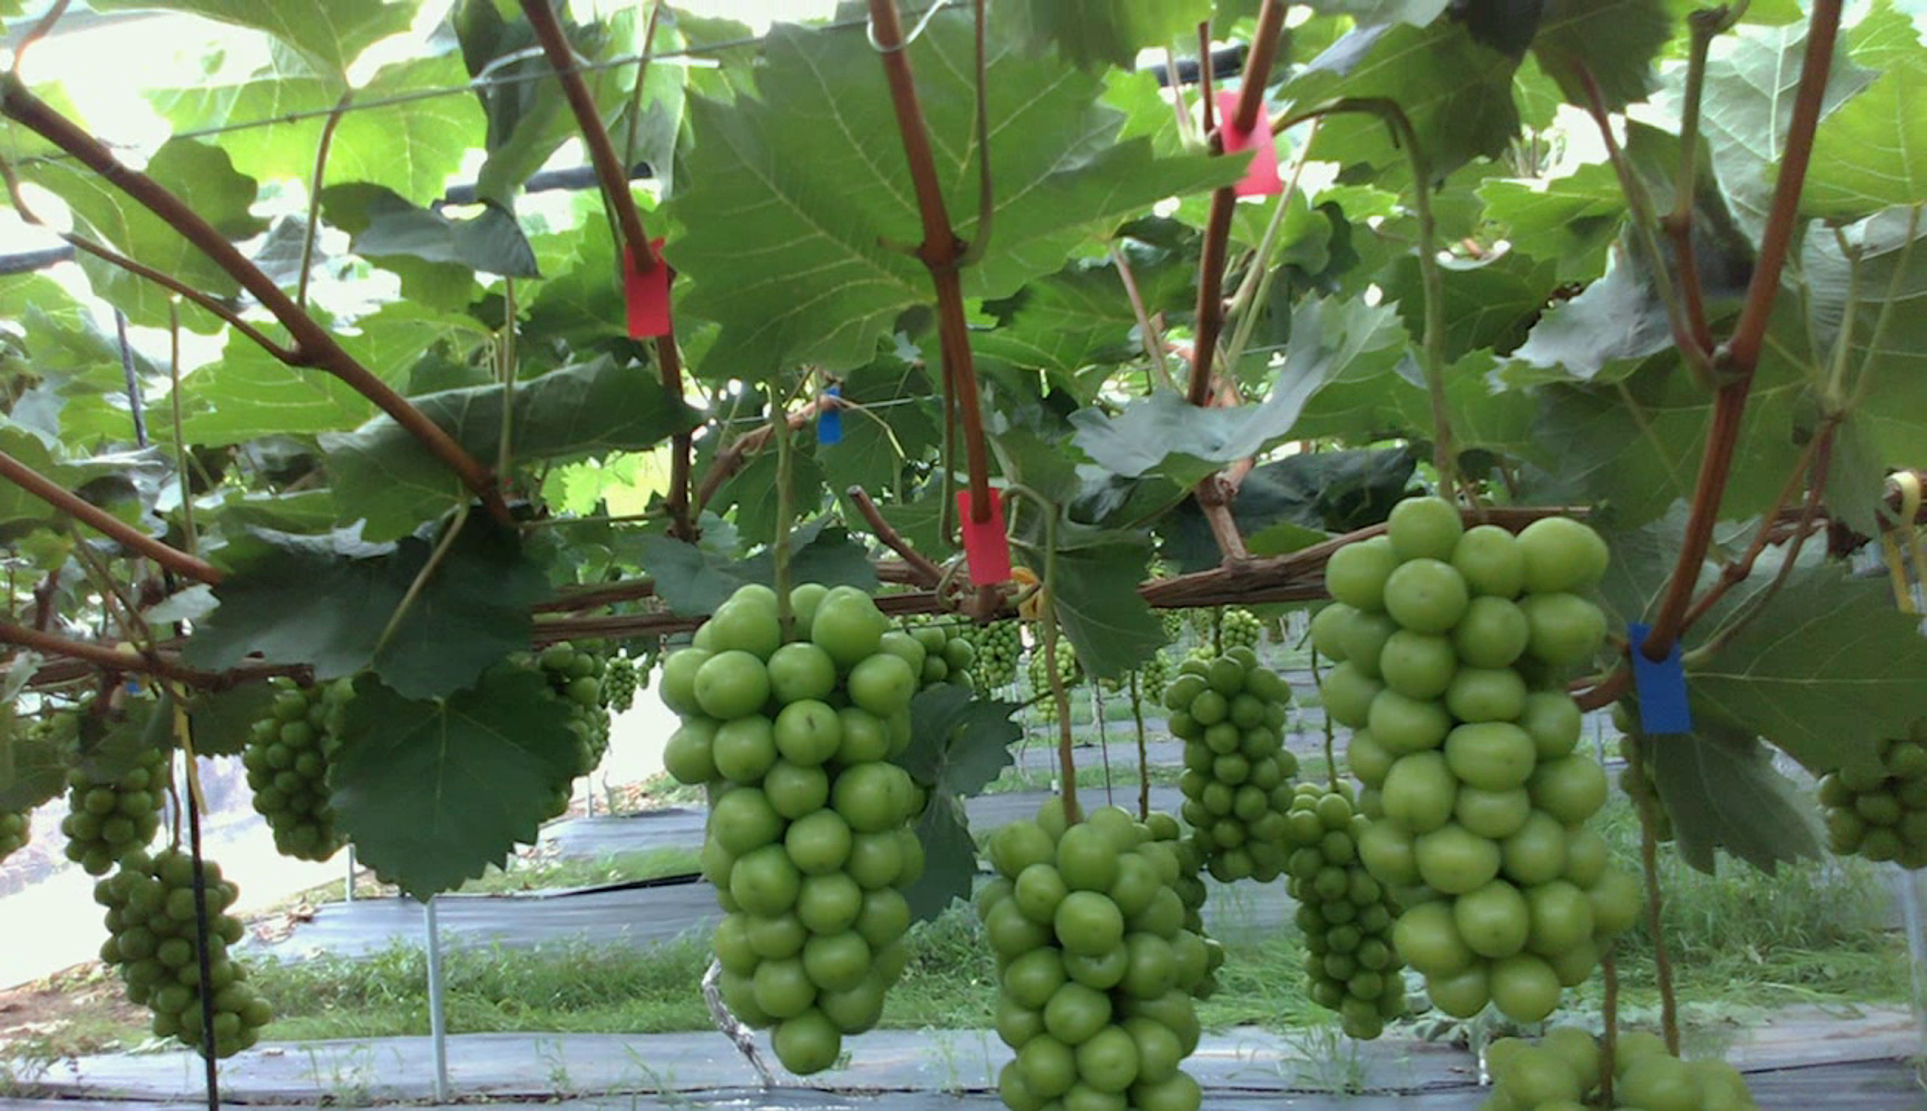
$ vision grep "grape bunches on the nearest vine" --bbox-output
[973,801,1206,1109]
[1484,1026,1751,1109]
[1314,495,1643,1023]
[661,582,925,1076]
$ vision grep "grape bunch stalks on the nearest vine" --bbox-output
[1001,485,1076,824]
[1600,966,1620,1094]
[769,386,795,639]
[1322,93,1456,497]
